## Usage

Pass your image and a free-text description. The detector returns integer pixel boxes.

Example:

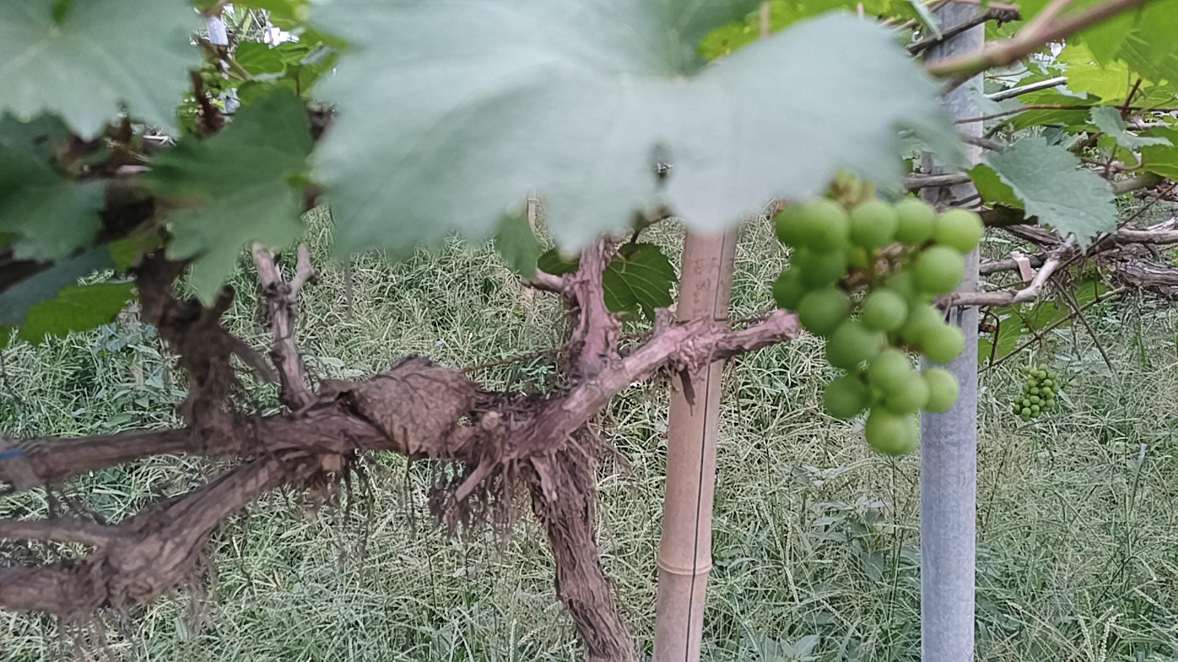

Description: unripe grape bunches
[1013,365,1058,422]
[774,175,982,454]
